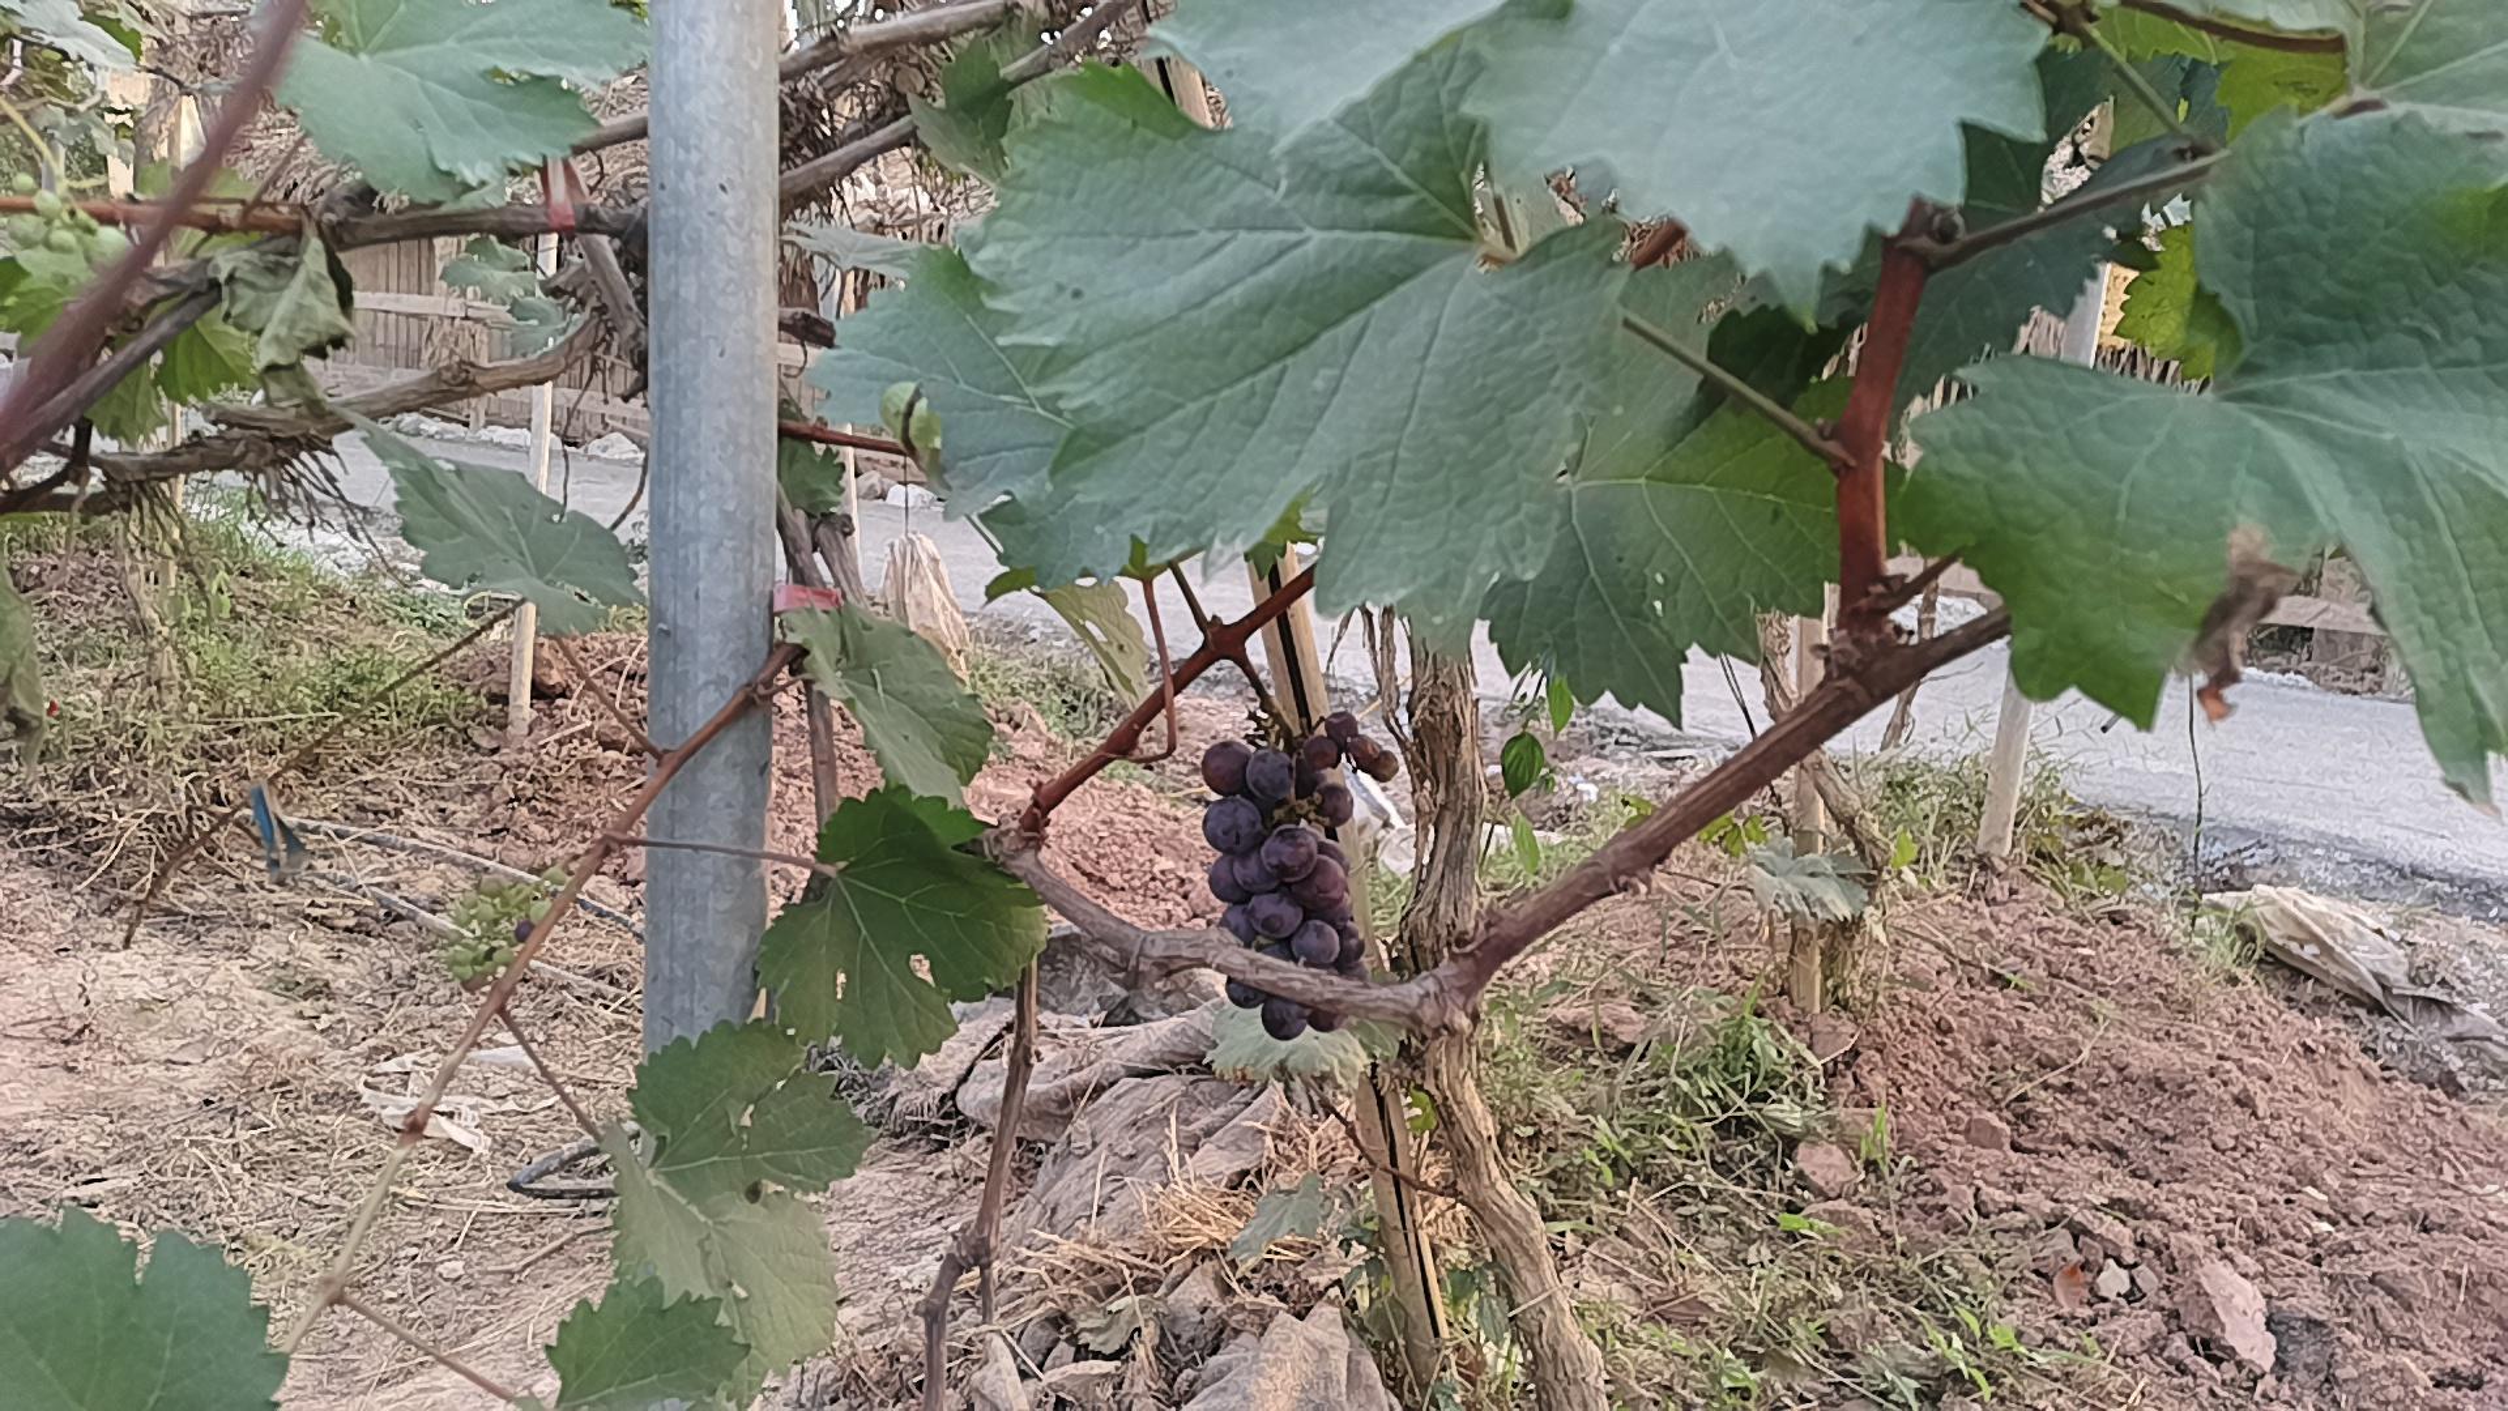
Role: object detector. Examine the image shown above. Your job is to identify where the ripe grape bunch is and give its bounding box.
[1200,712,1396,1040]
